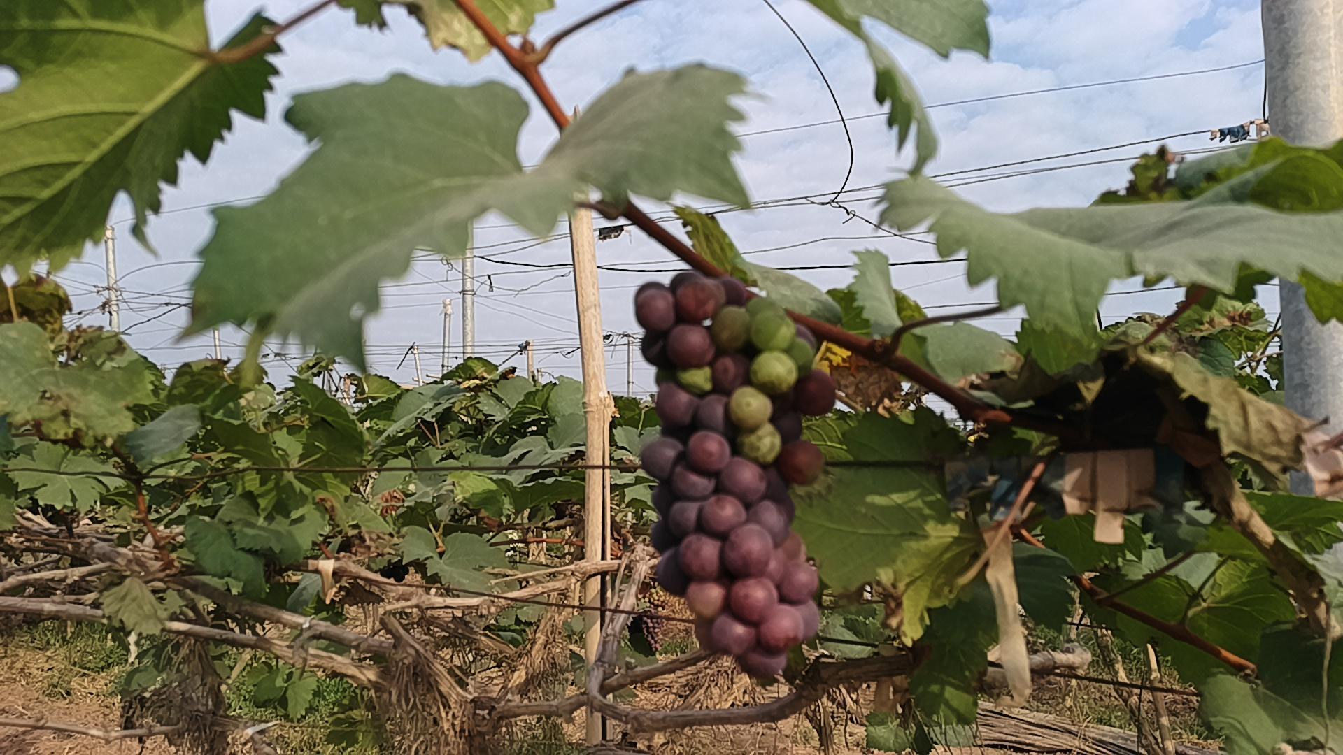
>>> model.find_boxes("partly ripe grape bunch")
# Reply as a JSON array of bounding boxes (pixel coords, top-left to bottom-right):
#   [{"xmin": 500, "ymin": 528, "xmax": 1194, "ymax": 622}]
[{"xmin": 636, "ymin": 271, "xmax": 834, "ymax": 678}]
